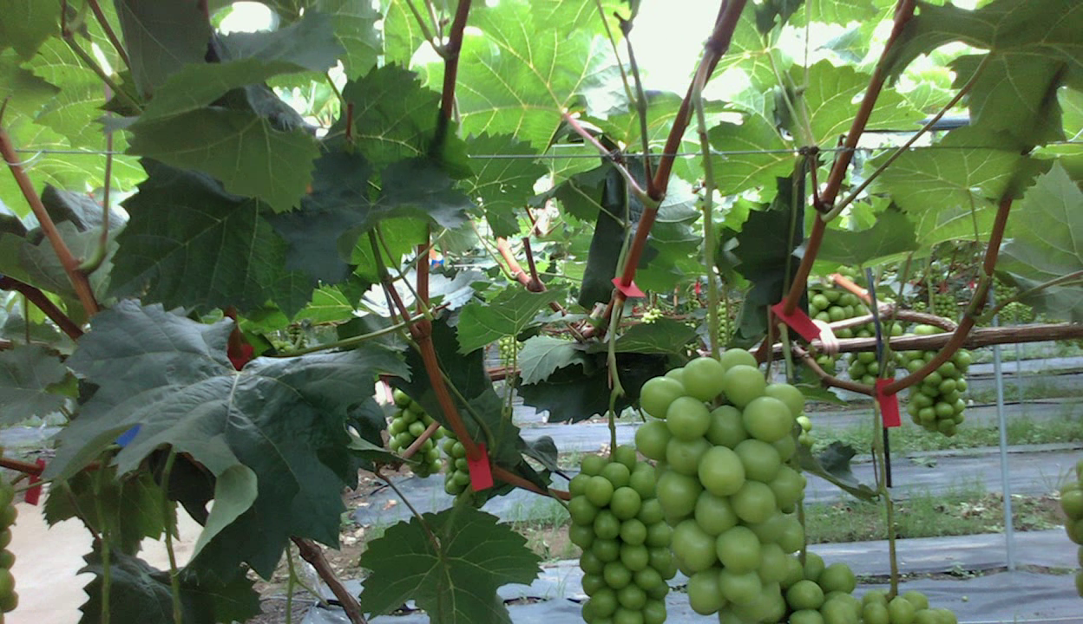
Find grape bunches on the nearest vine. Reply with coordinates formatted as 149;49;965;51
568;444;678;623
860;588;957;622
779;551;863;623
634;347;804;623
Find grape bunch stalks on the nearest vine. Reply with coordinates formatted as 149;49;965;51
870;397;899;601
692;52;720;363
607;299;621;461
